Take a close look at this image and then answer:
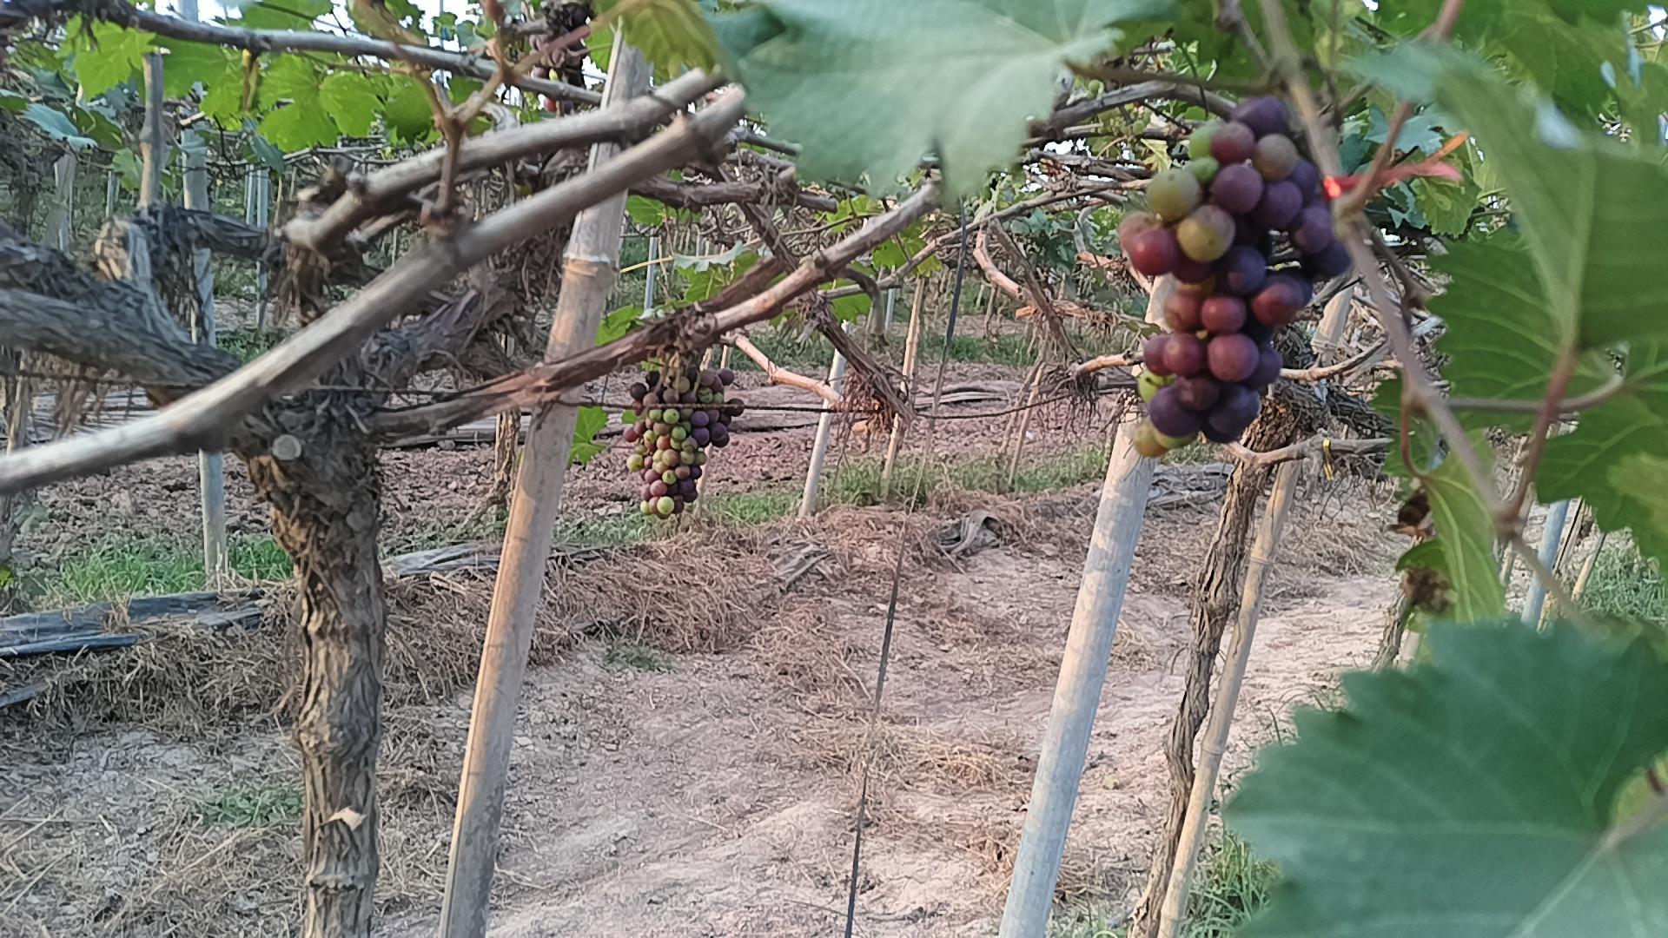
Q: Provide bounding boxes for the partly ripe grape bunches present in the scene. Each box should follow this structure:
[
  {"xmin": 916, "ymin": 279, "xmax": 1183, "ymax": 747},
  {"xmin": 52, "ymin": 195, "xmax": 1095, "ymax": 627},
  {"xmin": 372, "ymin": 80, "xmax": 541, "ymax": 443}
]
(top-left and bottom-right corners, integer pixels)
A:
[
  {"xmin": 623, "ymin": 364, "xmax": 745, "ymax": 519},
  {"xmin": 1119, "ymin": 96, "xmax": 1351, "ymax": 456}
]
